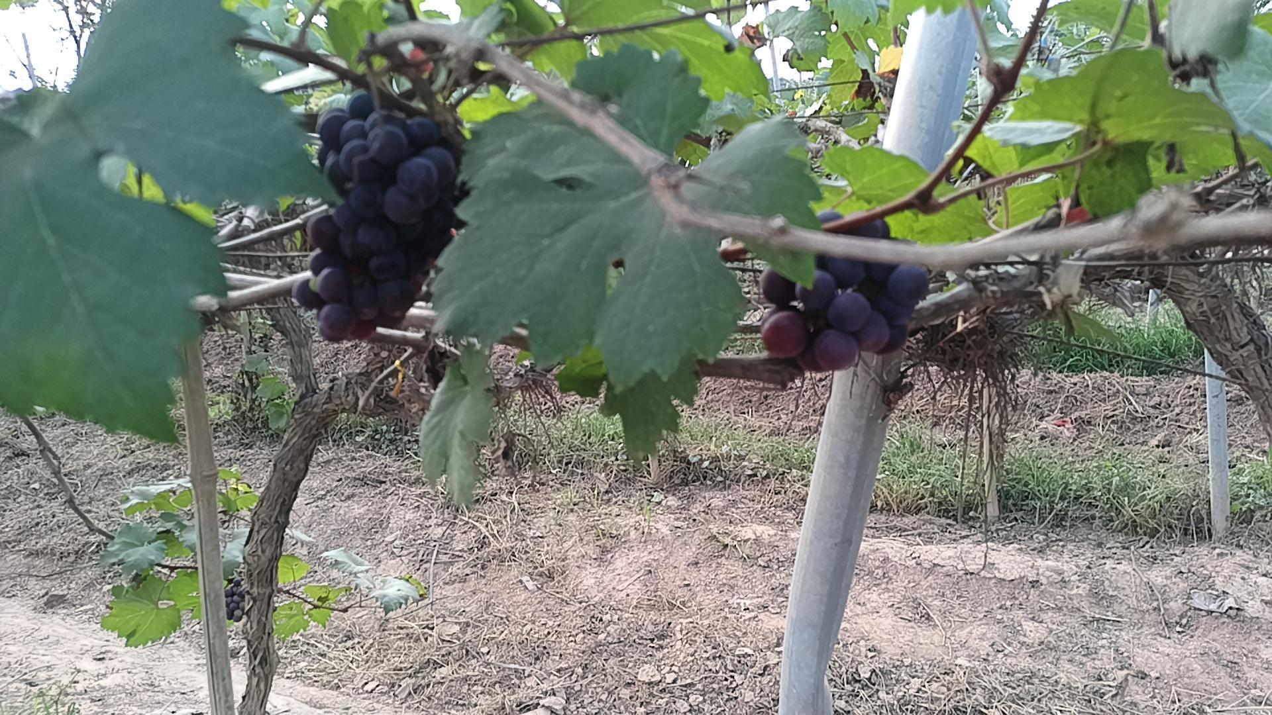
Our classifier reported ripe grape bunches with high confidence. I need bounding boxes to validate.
[761,212,928,371]
[293,92,465,340]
